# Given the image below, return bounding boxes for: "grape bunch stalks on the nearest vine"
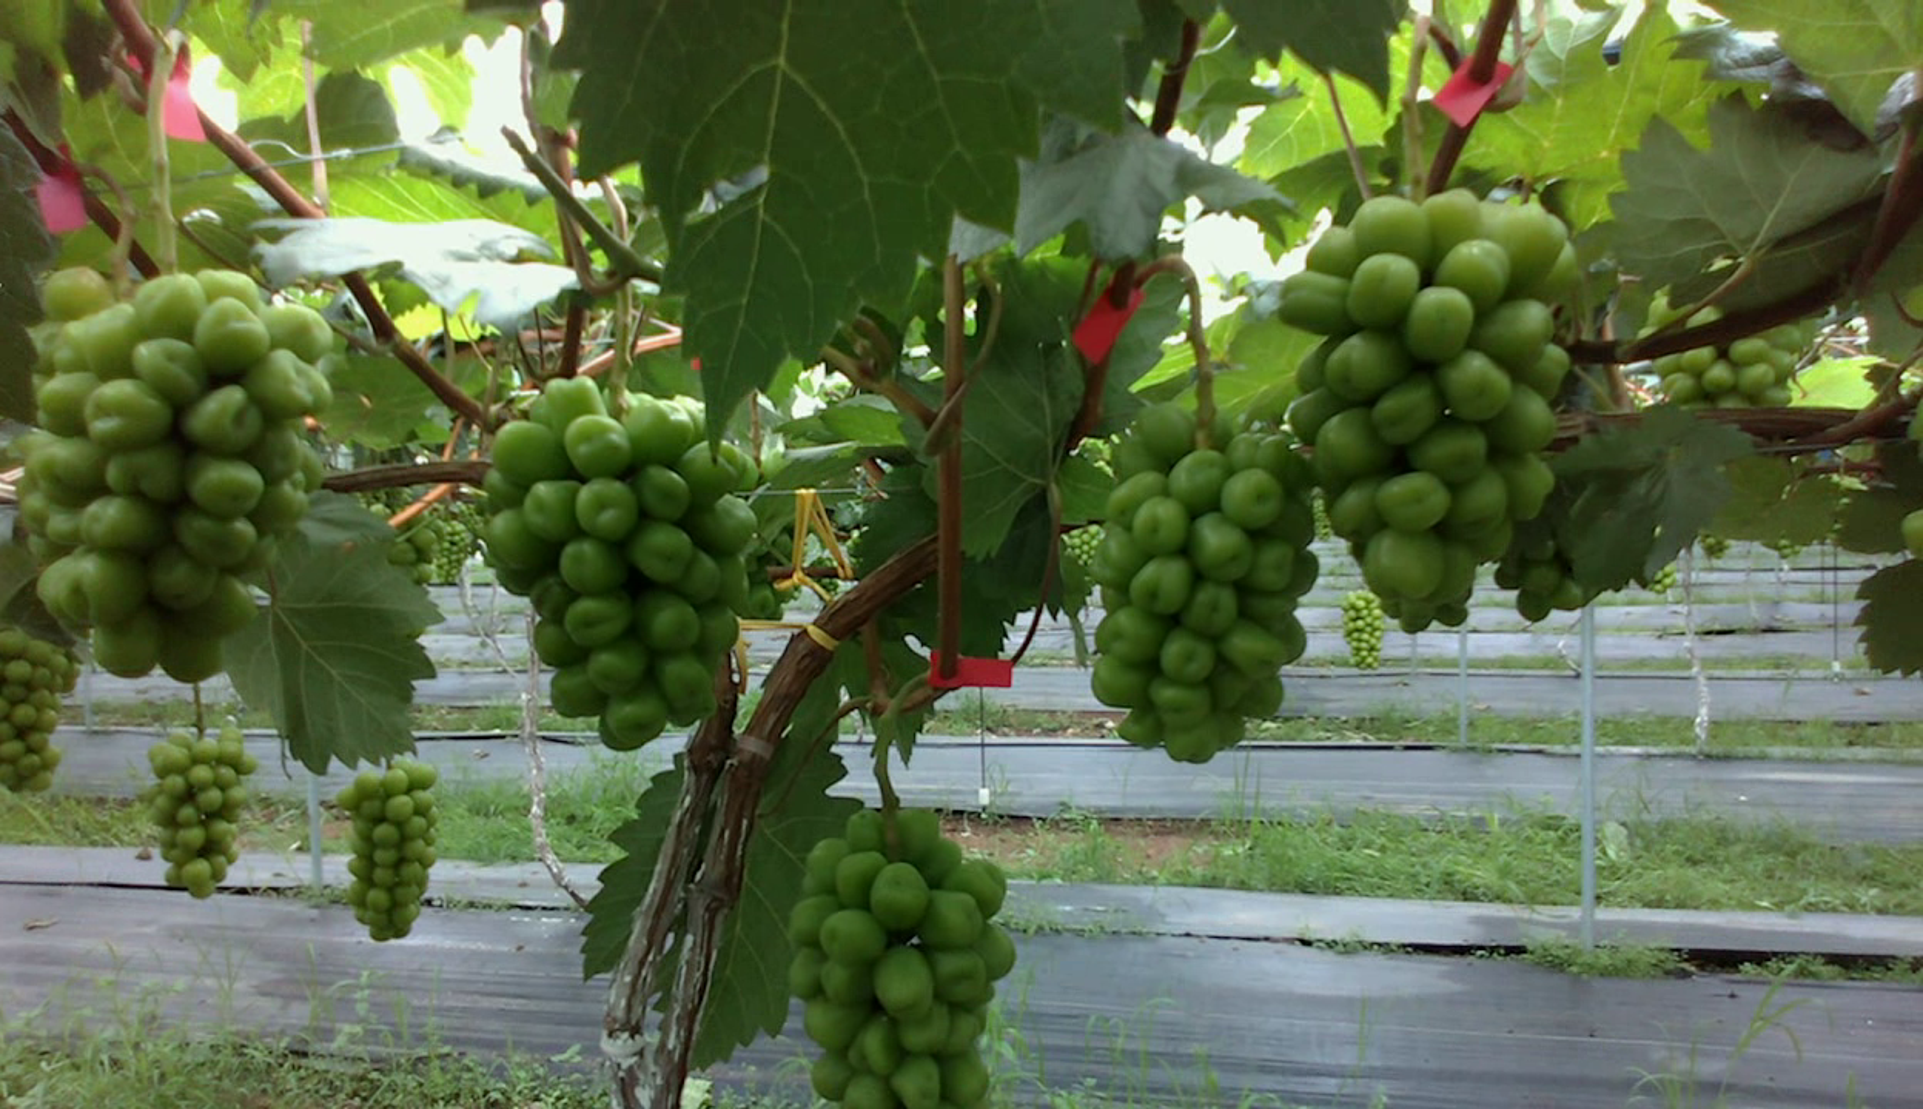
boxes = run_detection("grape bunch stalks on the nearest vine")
[148,26,183,273]
[1402,17,1462,199]
[872,670,931,858]
[1133,256,1216,448]
[593,171,633,417]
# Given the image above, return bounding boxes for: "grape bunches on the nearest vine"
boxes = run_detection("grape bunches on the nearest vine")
[482,373,758,752]
[3,265,333,684]
[789,807,1017,1107]
[1089,402,1321,764]
[1277,186,1576,633]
